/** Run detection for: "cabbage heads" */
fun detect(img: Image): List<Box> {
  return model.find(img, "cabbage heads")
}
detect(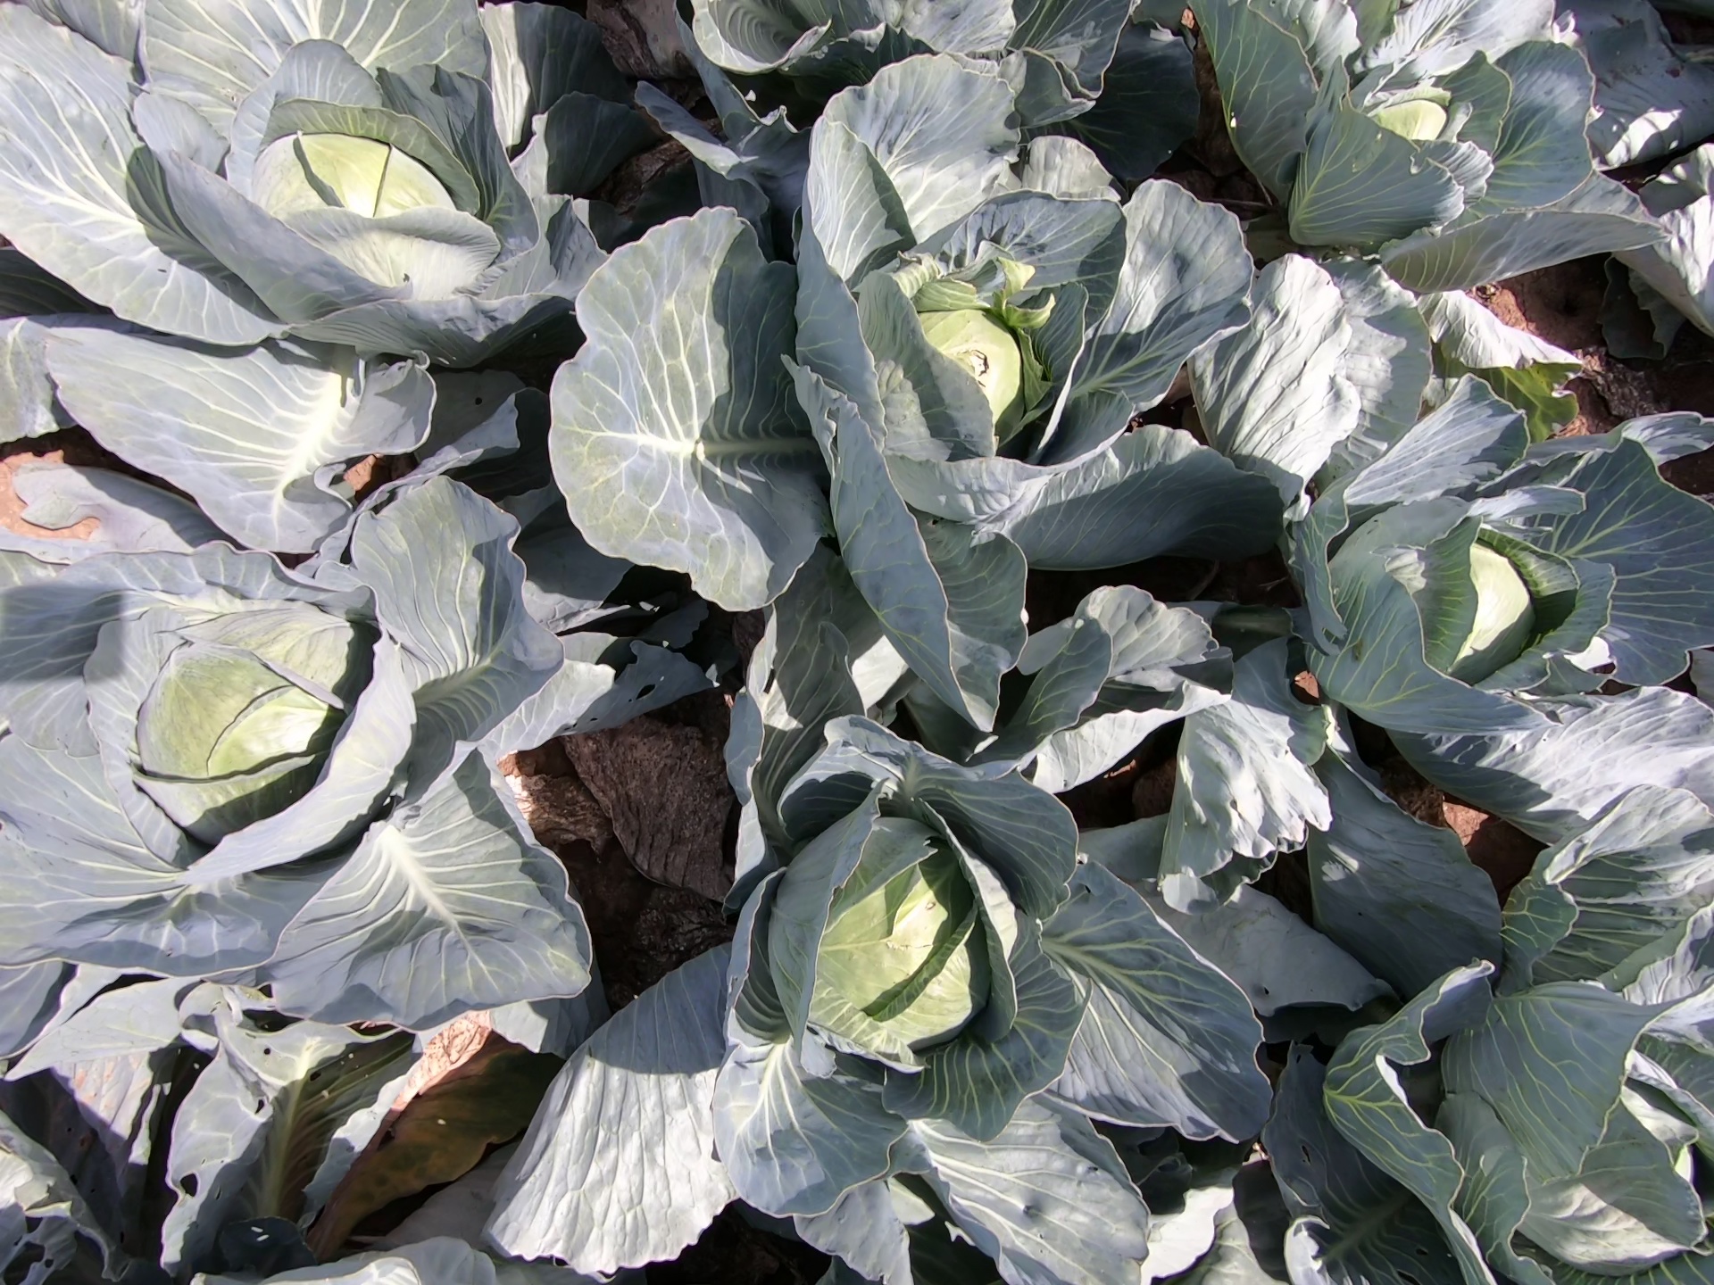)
[1343,86,1459,209]
[1499,1044,1697,1266]
[856,294,1034,456]
[131,612,410,855]
[1344,511,1541,696]
[780,817,1015,1056]
[246,120,468,318]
